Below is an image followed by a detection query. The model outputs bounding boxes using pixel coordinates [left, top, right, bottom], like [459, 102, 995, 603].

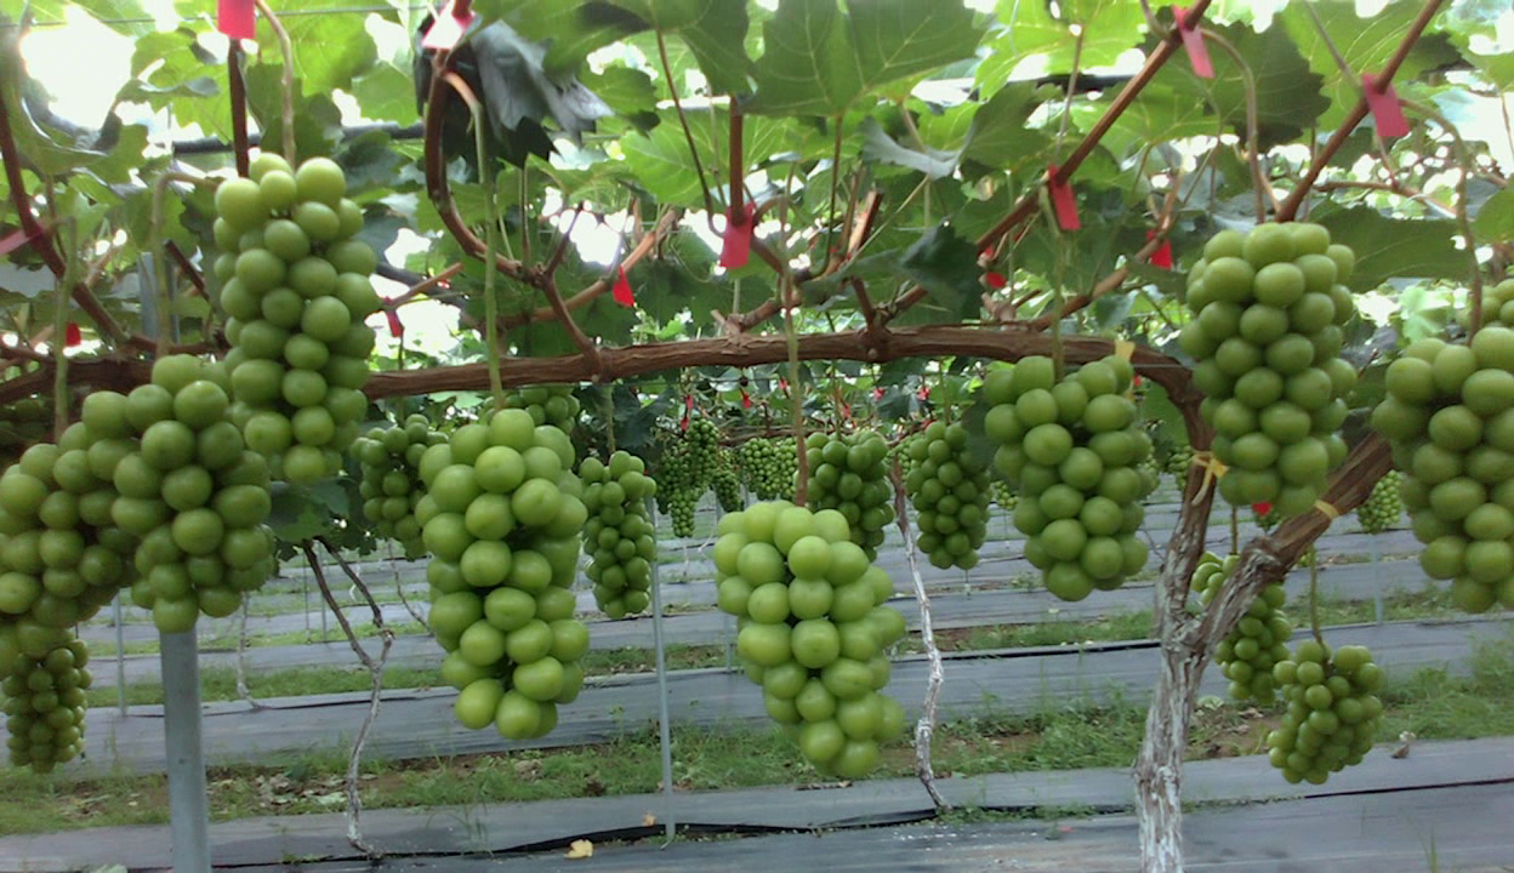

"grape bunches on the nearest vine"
[214, 153, 382, 485]
[415, 406, 593, 741]
[712, 500, 905, 777]
[1373, 327, 1513, 614]
[1178, 222, 1359, 518]
[983, 354, 1155, 601]
[1, 423, 138, 674]
[80, 352, 278, 632]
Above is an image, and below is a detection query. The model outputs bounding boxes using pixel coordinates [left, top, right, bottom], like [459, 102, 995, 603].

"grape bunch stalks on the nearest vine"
[49, 217, 79, 436]
[448, 74, 503, 406]
[1405, 102, 1481, 343]
[1037, 188, 1064, 381]
[149, 169, 210, 356]
[256, 6, 295, 166]
[779, 202, 806, 506]
[1207, 30, 1265, 221]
